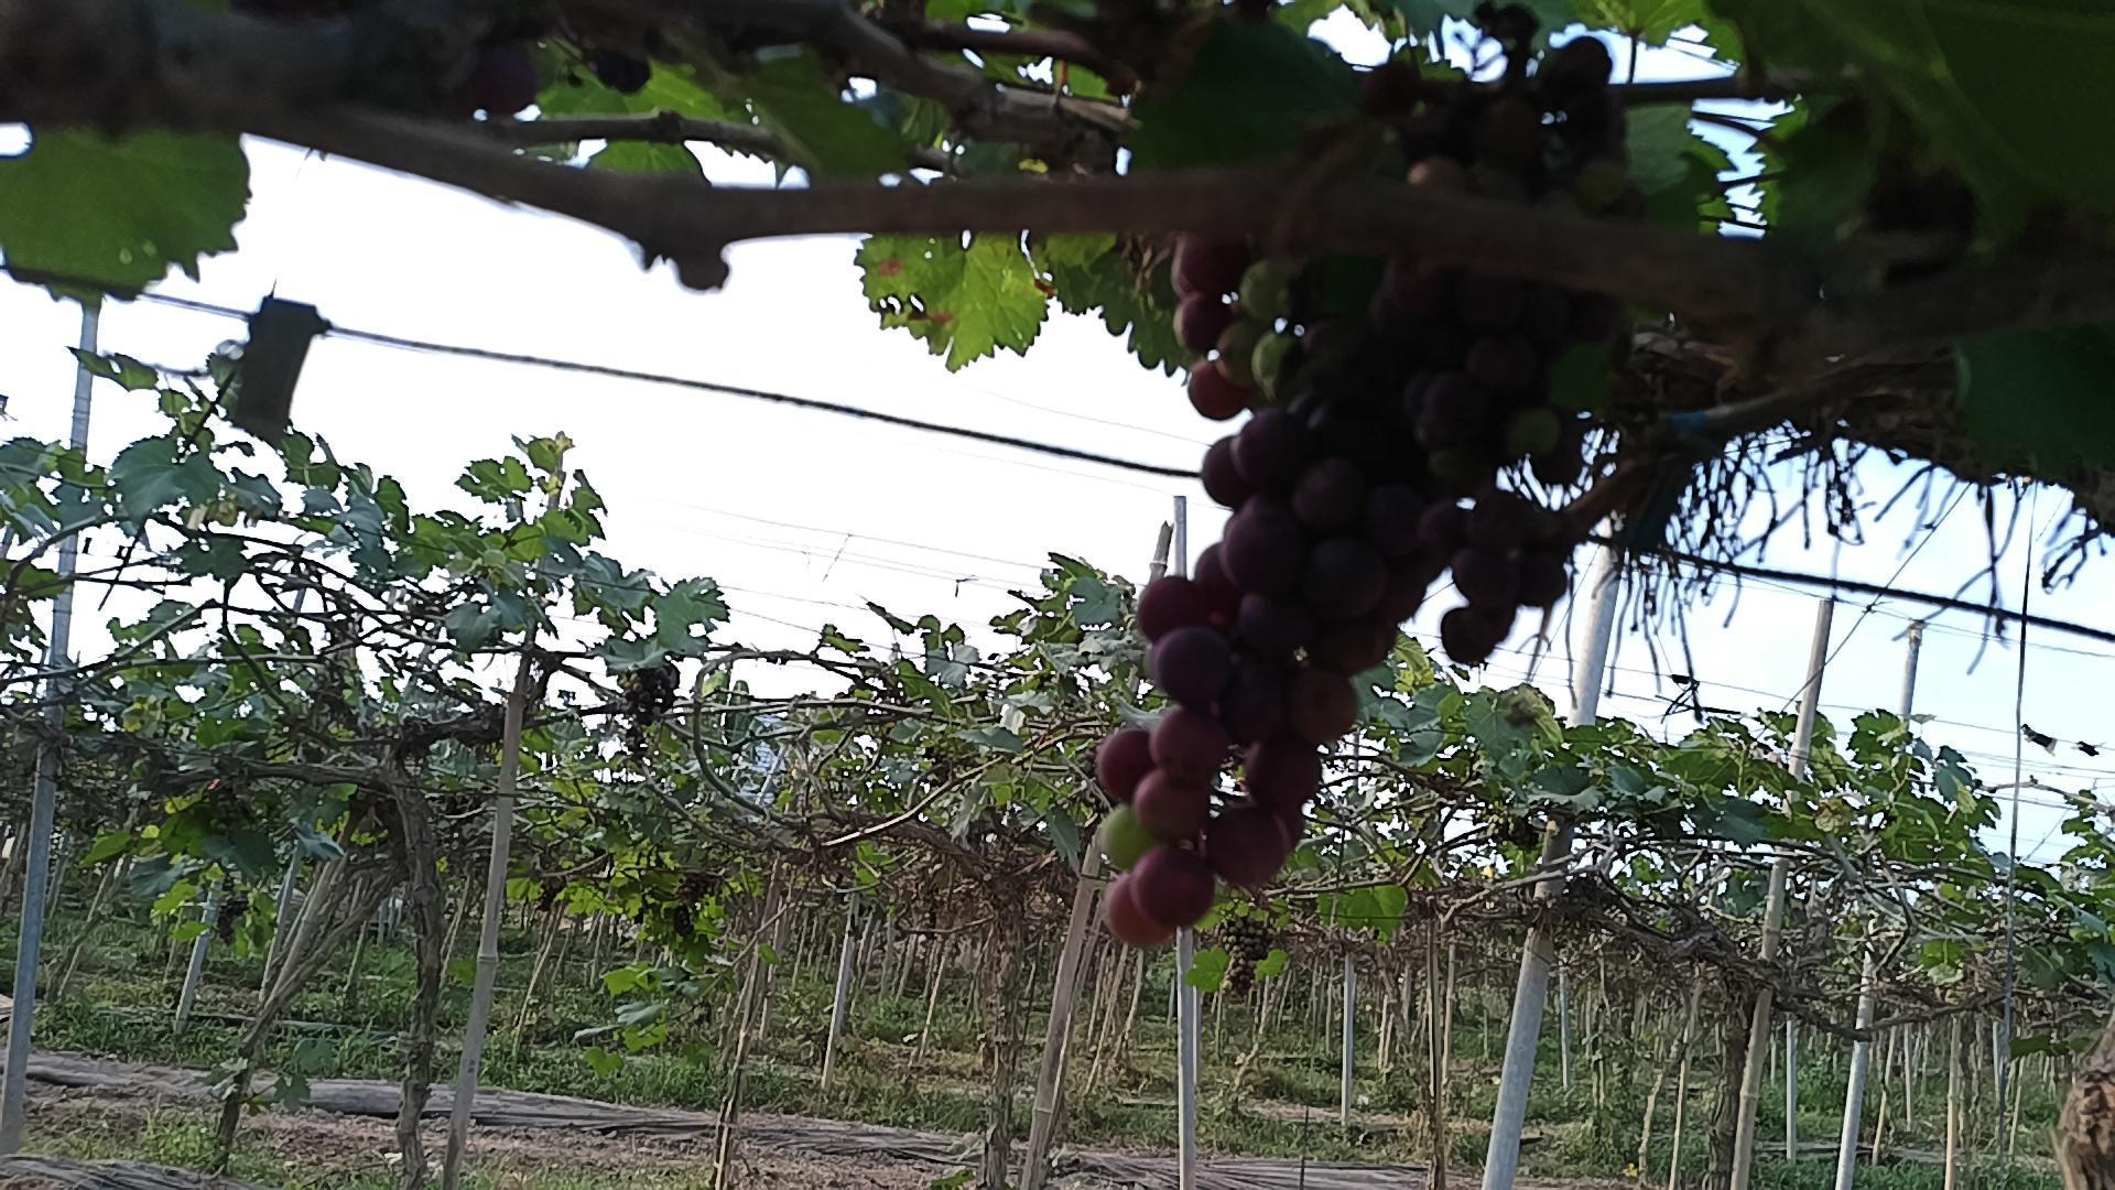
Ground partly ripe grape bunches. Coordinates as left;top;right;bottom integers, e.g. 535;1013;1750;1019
1215;906;1277;995
615;661;680;759
1099;1;1649;950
